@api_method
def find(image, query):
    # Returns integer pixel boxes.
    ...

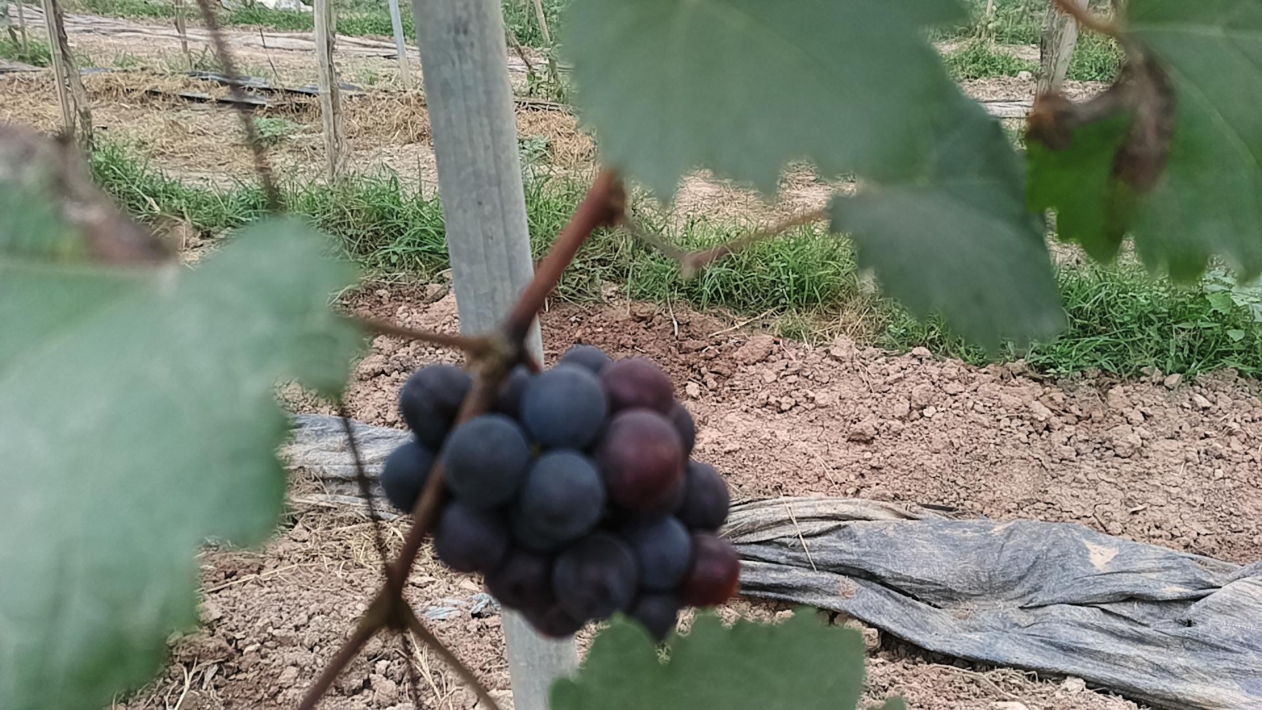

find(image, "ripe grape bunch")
[382,345,739,640]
